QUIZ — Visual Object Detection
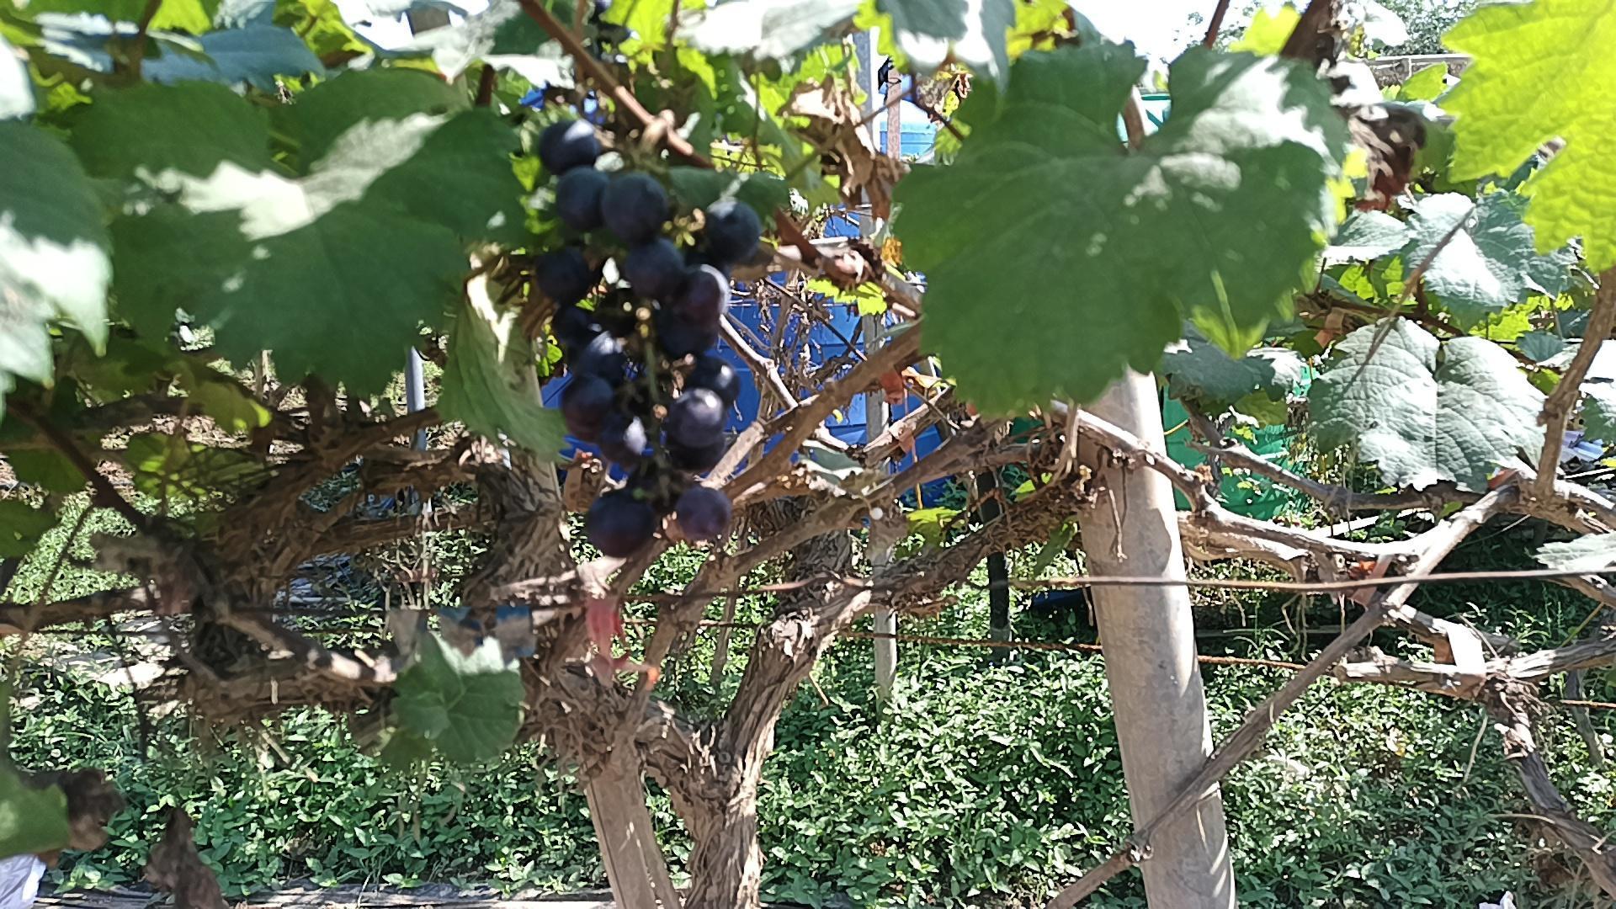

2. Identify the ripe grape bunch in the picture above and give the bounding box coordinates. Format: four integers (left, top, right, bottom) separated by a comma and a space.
536, 121, 760, 557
